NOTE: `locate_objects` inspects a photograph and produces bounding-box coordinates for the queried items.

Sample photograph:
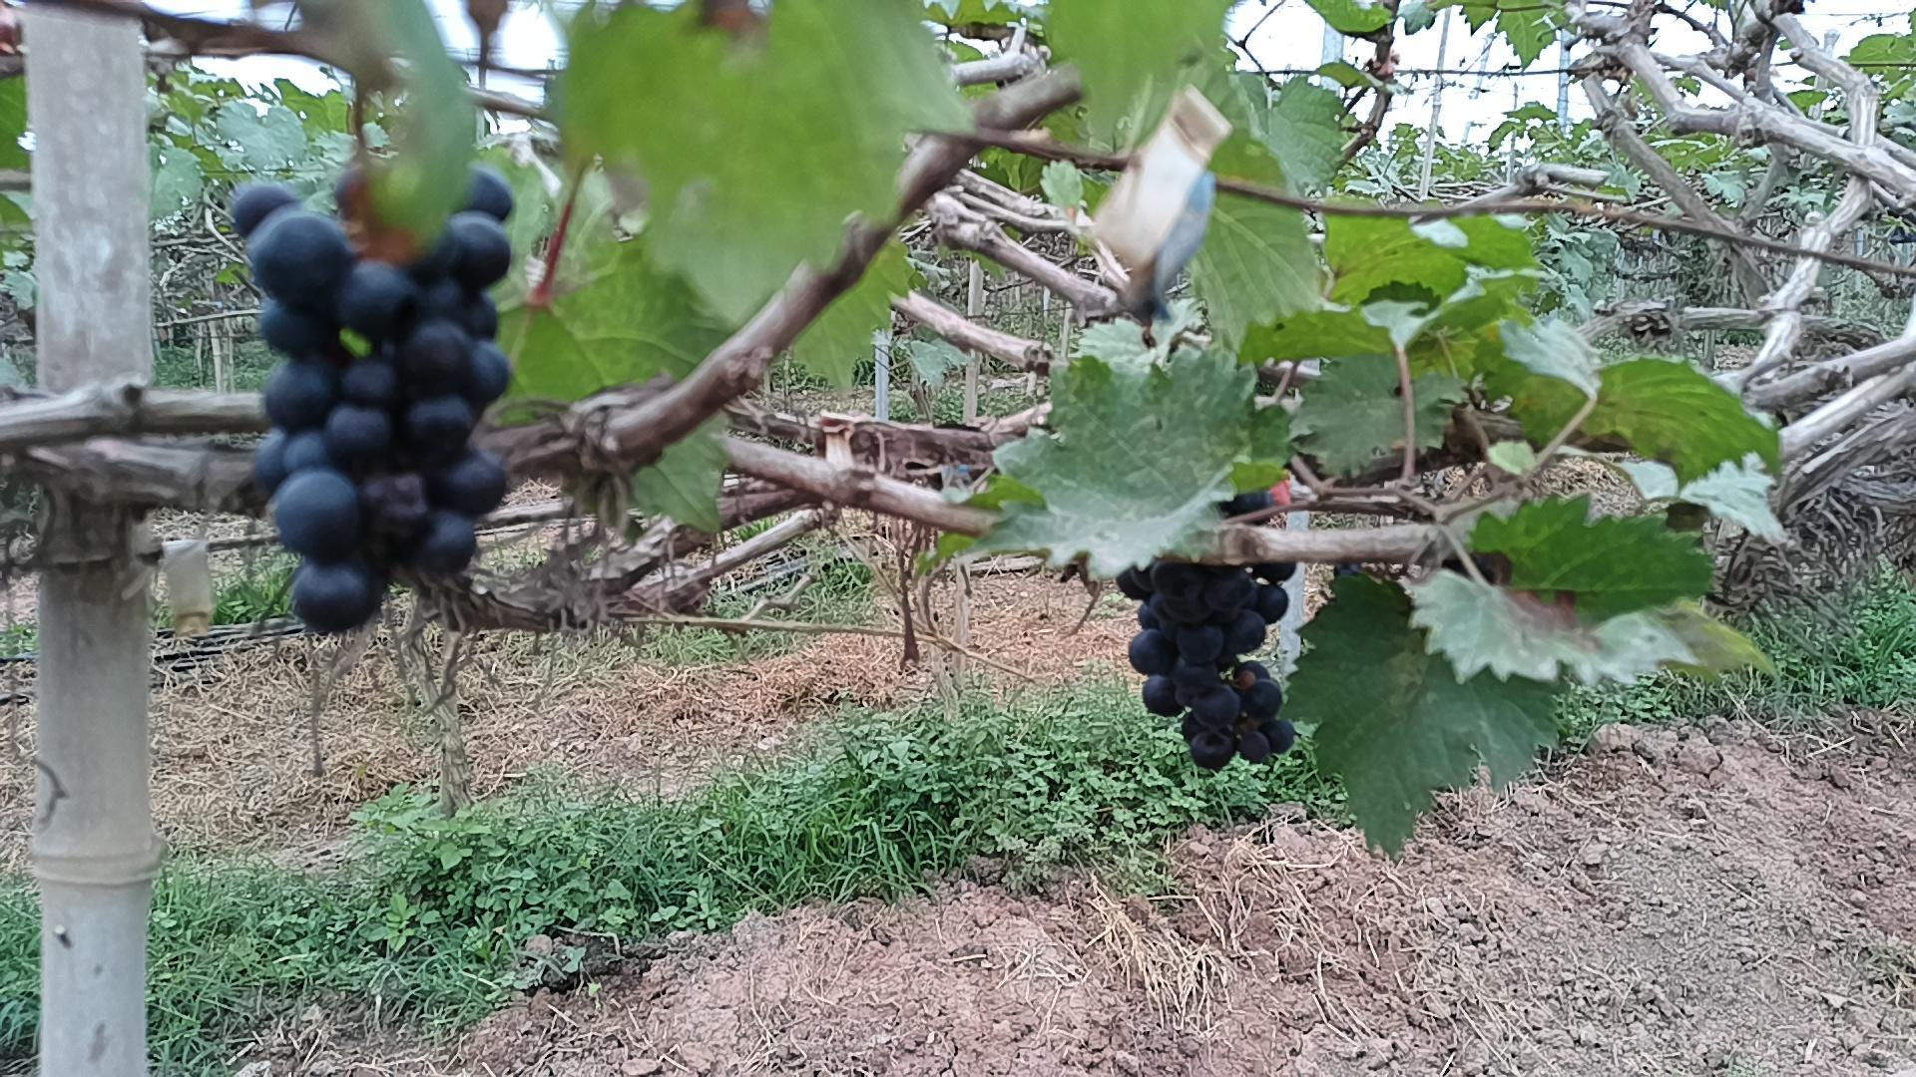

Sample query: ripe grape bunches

[1116,493,1294,770]
[232,169,512,631]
